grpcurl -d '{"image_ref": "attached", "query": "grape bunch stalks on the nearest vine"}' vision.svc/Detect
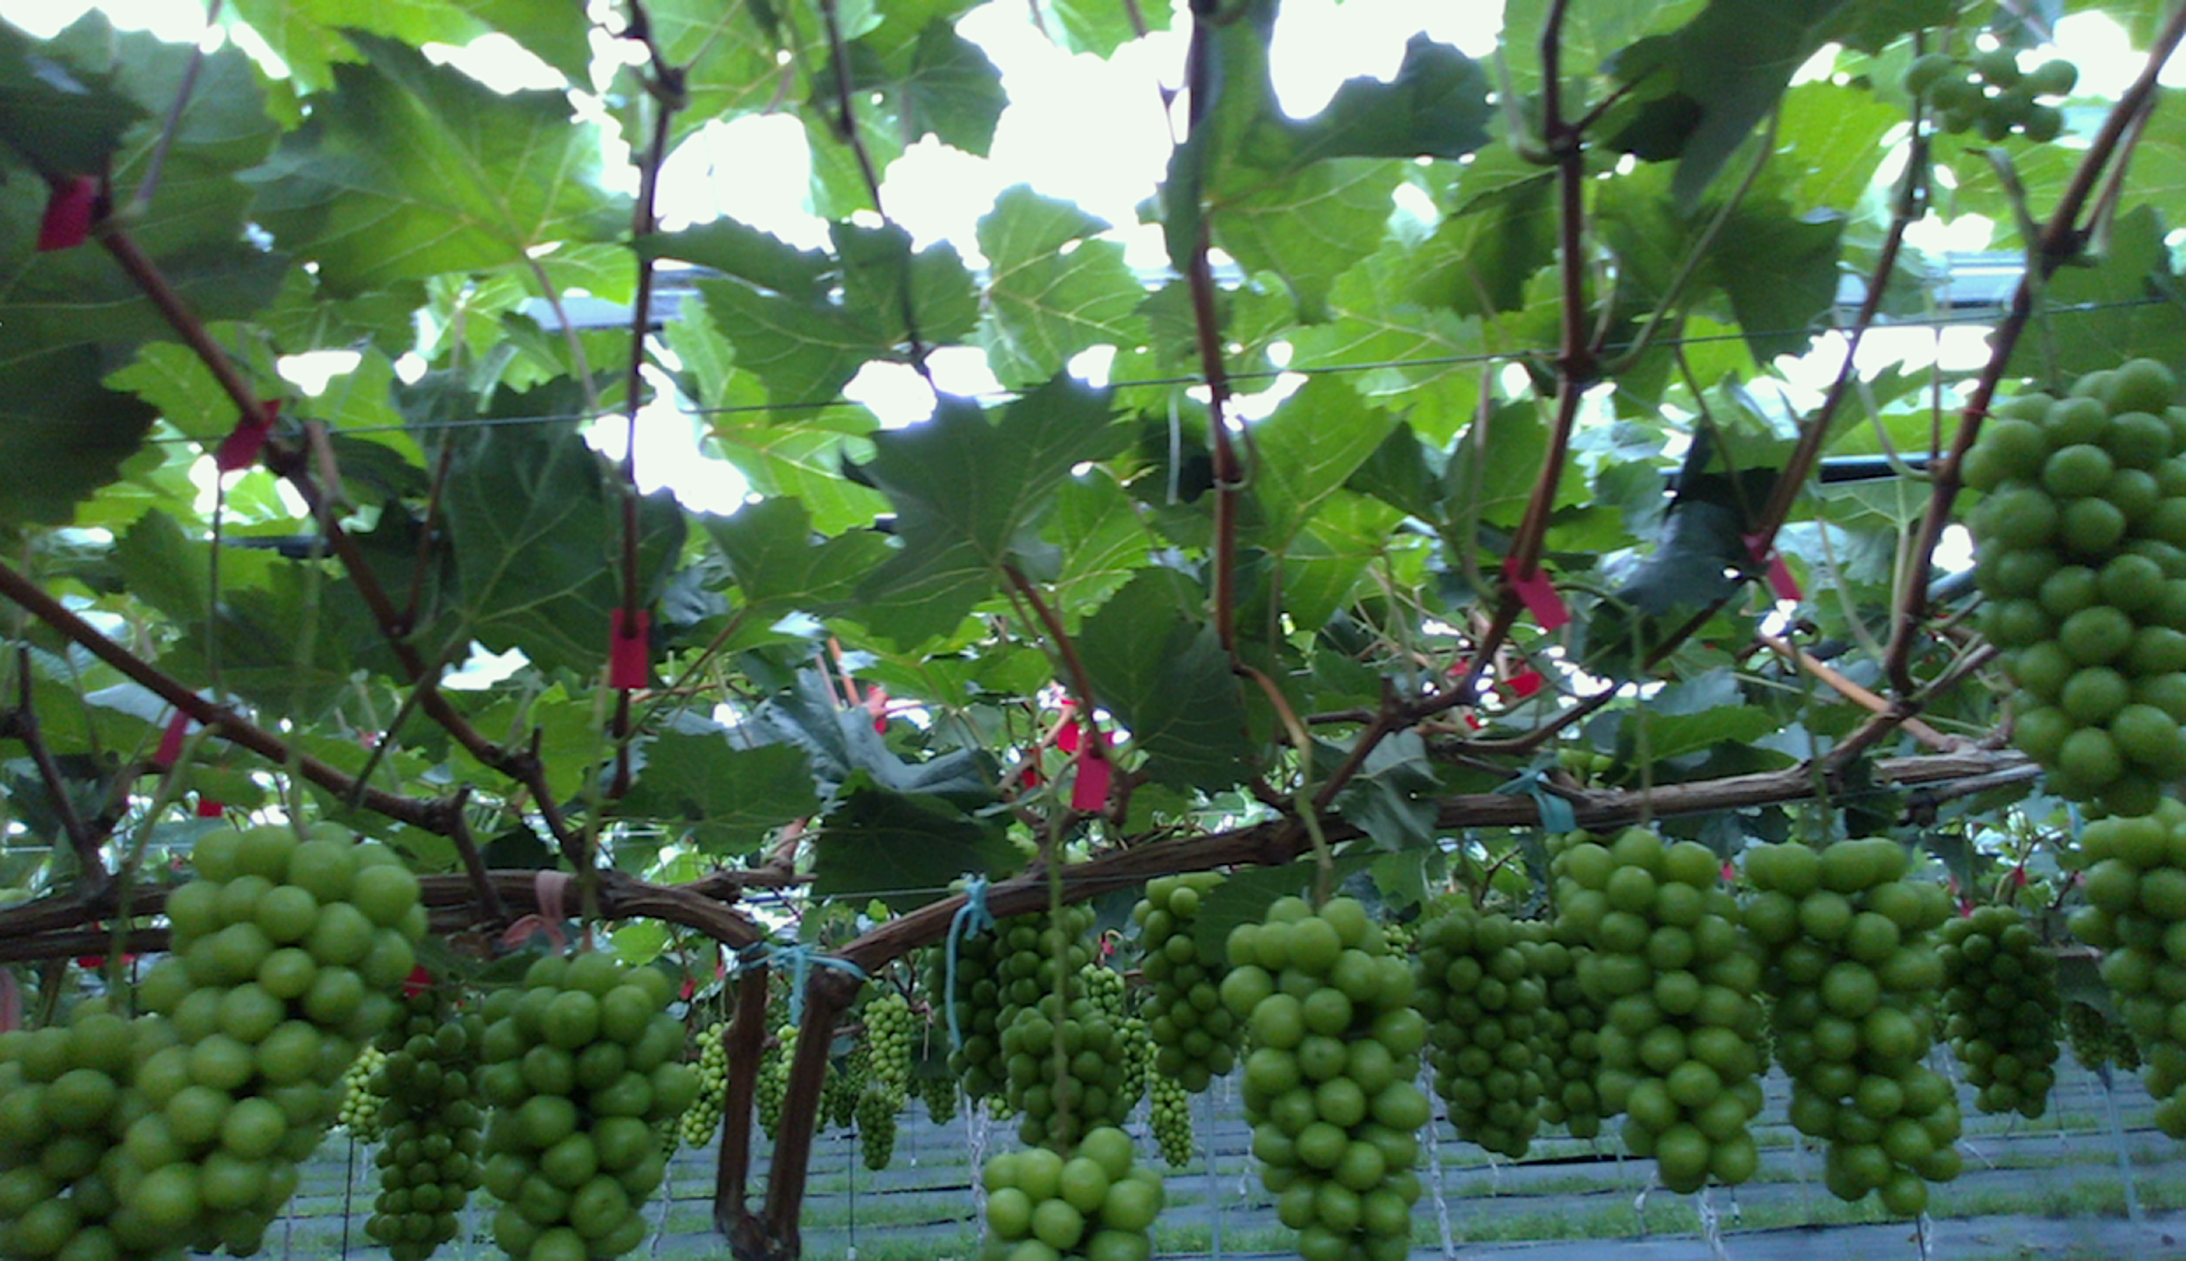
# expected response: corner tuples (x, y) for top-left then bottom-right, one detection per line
(286, 422), (340, 842)
(1044, 751), (1079, 1159)
(1971, 147), (2063, 396)
(1783, 629), (1830, 856)
(109, 723), (222, 1016)
(1235, 664), (1331, 916)
(580, 660), (611, 951)
(1550, 580), (1652, 830)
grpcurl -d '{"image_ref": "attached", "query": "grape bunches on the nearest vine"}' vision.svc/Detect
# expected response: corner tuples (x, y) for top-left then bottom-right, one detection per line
(1555, 828), (1766, 1194)
(1221, 897), (1429, 1259)
(1743, 837), (1962, 1144)
(0, 990), (186, 1259)
(1962, 357), (2184, 818)
(480, 951), (699, 1259)
(979, 1128), (1165, 1259)
(96, 820), (429, 1226)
